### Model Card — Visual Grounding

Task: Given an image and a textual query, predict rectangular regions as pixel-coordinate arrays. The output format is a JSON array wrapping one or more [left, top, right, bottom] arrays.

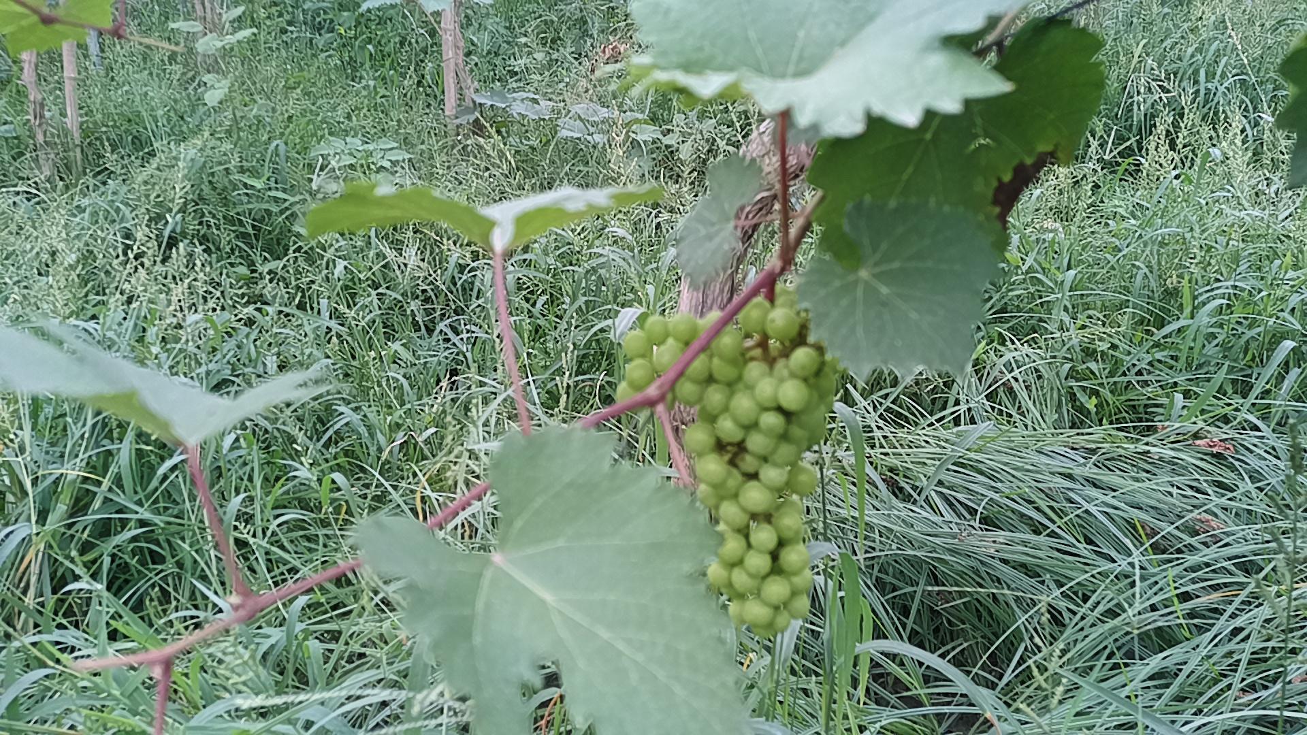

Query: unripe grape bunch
[[612, 287, 837, 636]]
